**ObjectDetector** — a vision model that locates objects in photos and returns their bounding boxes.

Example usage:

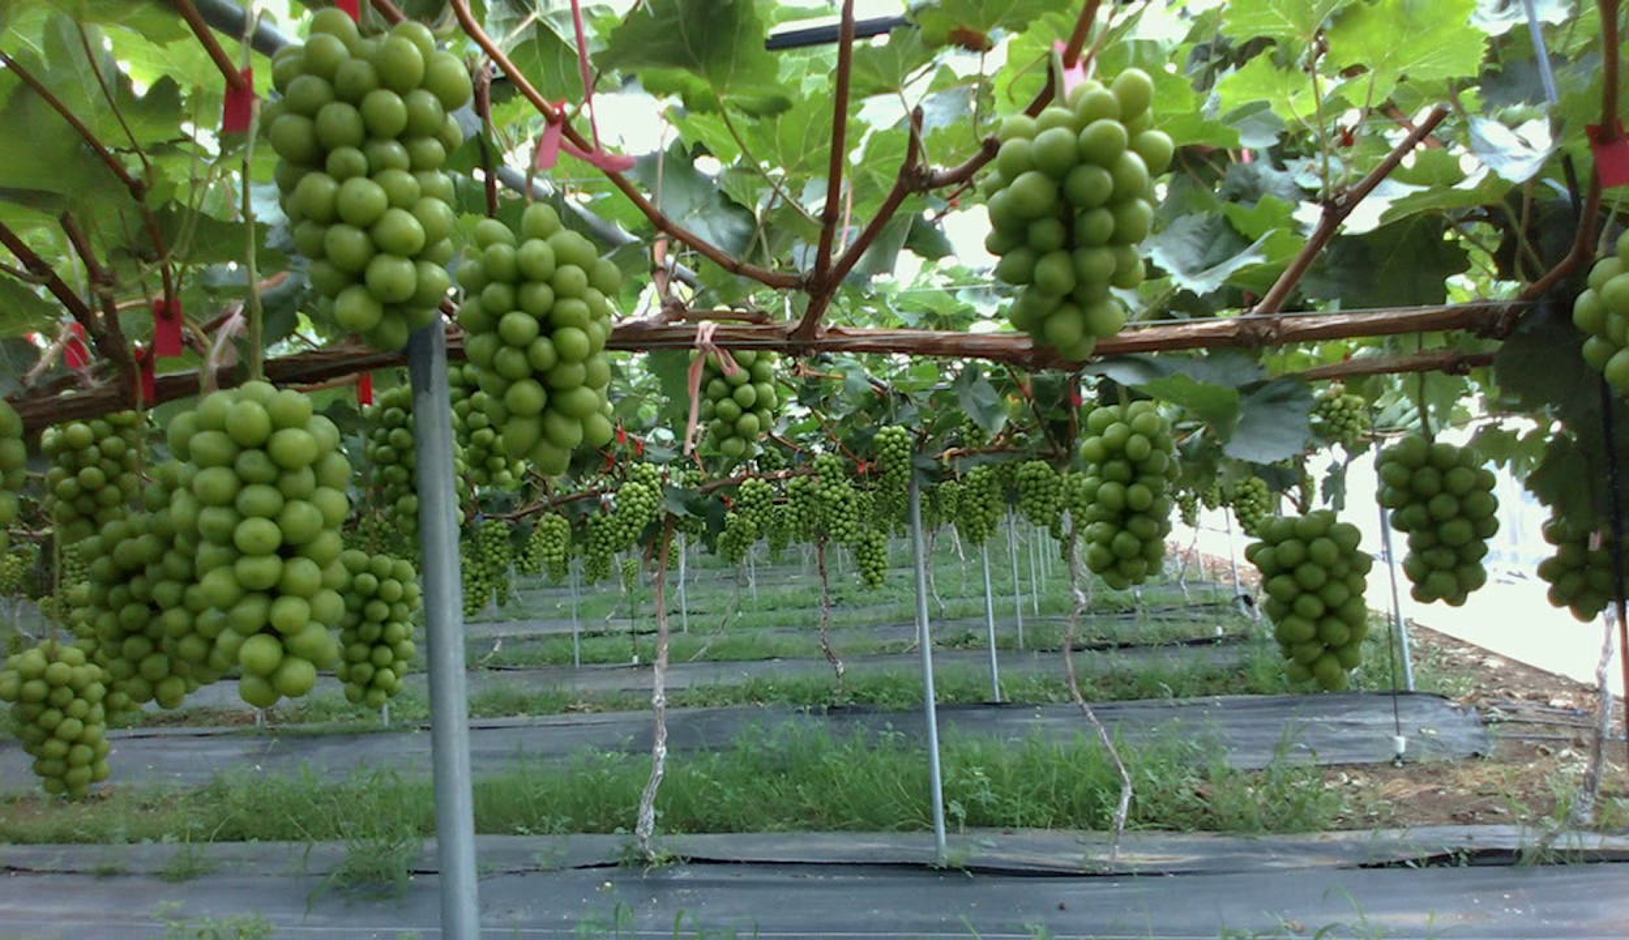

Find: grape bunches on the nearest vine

[262,8,473,351]
[458,204,620,475]
[81,514,200,709]
[978,68,1176,362]
[1574,235,1626,388]
[168,380,352,710]
[0,402,26,551]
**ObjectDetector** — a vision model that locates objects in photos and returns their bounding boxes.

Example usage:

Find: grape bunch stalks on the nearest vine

[526,151,536,201]
[1048,51,1065,107]
[131,359,146,512]
[359,0,377,34]
[240,101,262,379]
